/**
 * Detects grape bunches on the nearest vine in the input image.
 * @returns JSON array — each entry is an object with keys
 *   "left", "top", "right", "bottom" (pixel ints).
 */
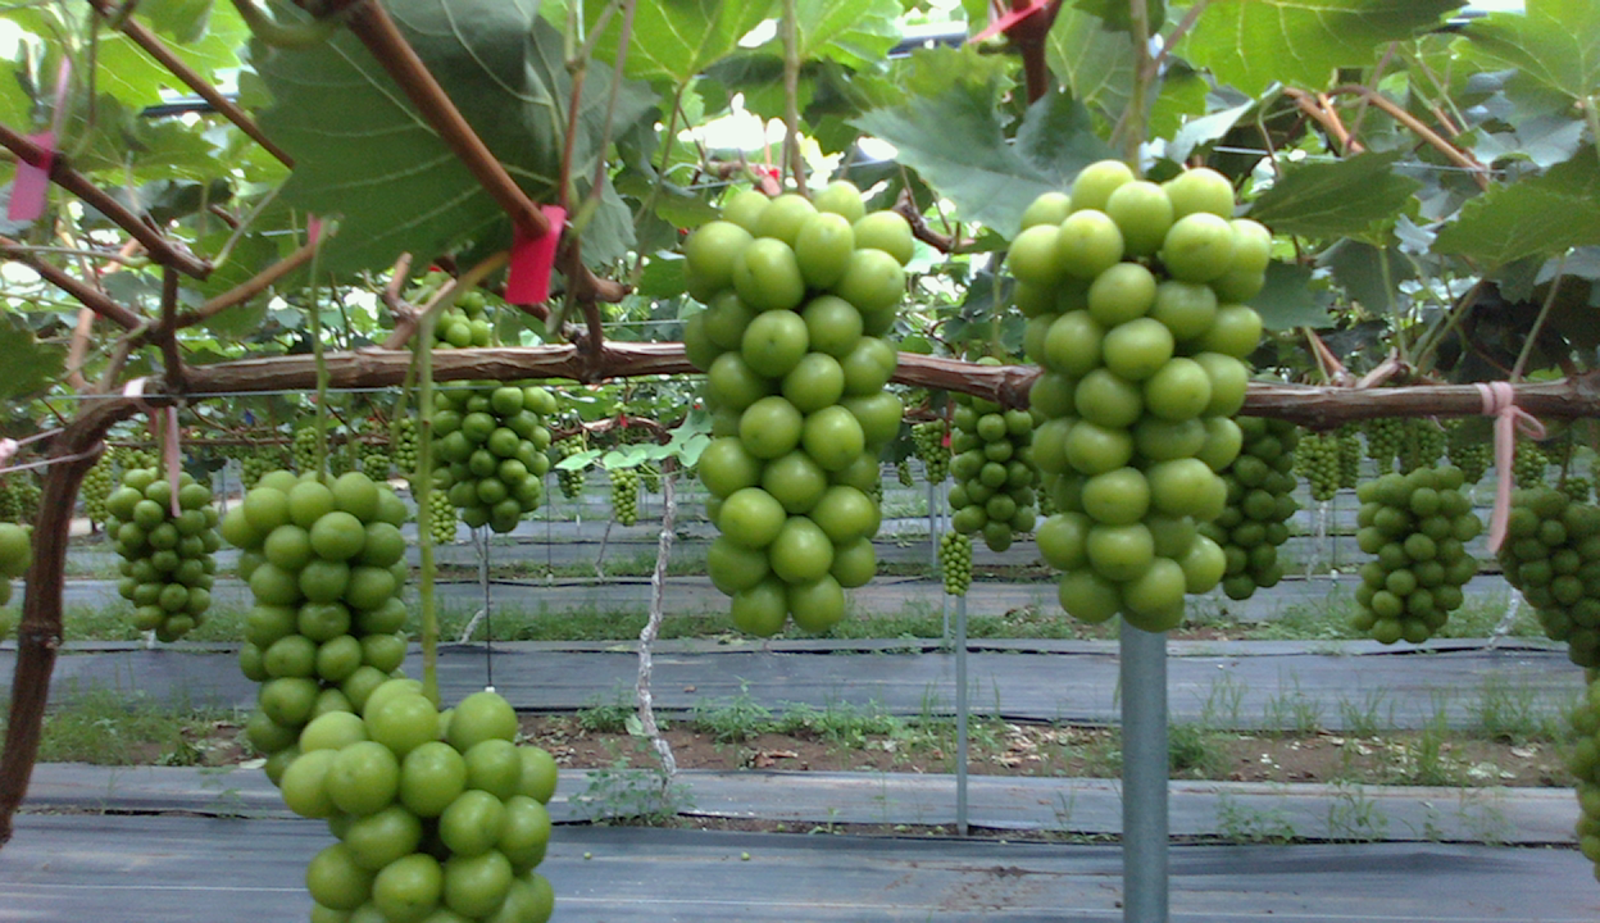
[
  {"left": 681, "top": 182, "right": 915, "bottom": 640},
  {"left": 219, "top": 469, "right": 410, "bottom": 783},
  {"left": 279, "top": 681, "right": 558, "bottom": 922},
  {"left": 1008, "top": 159, "right": 1271, "bottom": 632}
]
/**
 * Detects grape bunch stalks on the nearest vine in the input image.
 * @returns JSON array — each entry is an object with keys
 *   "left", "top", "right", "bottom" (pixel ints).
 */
[
  {"left": 782, "top": 0, "right": 808, "bottom": 197},
  {"left": 1127, "top": 1, "right": 1147, "bottom": 181},
  {"left": 310, "top": 215, "right": 329, "bottom": 486},
  {"left": 417, "top": 250, "right": 508, "bottom": 708}
]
